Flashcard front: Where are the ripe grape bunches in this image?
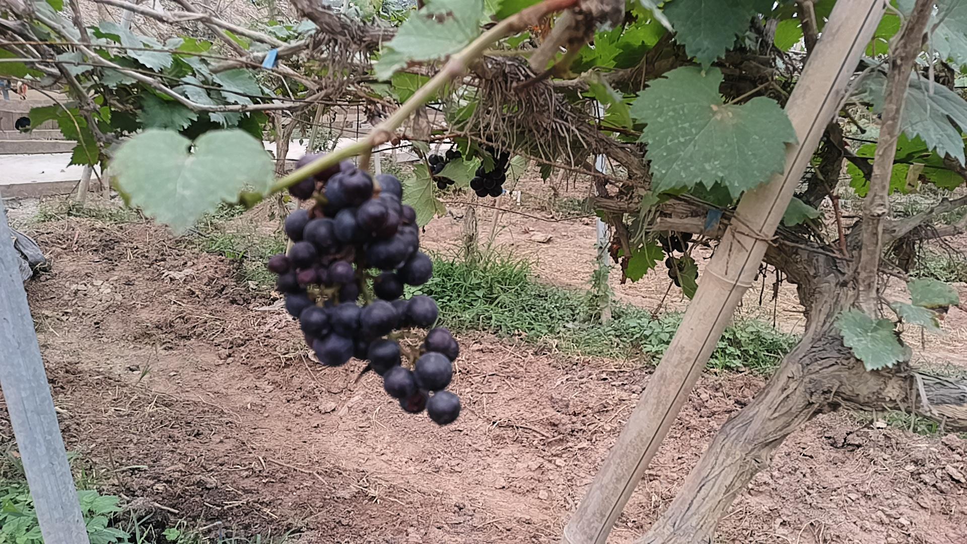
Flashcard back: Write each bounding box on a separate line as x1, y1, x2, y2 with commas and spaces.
428, 147, 510, 197
268, 161, 460, 425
